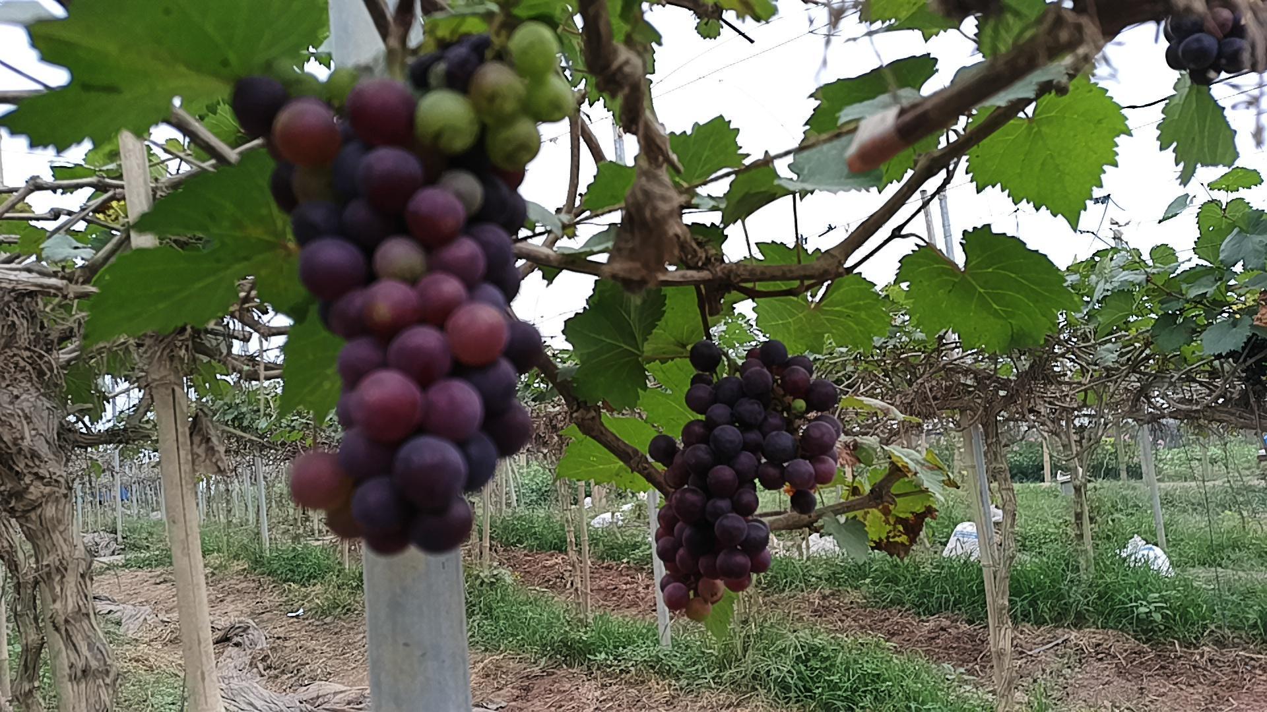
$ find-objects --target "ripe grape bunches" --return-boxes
[1164,0,1266,84]
[649,339,839,621]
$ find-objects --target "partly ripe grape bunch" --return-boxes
[232,21,571,554]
